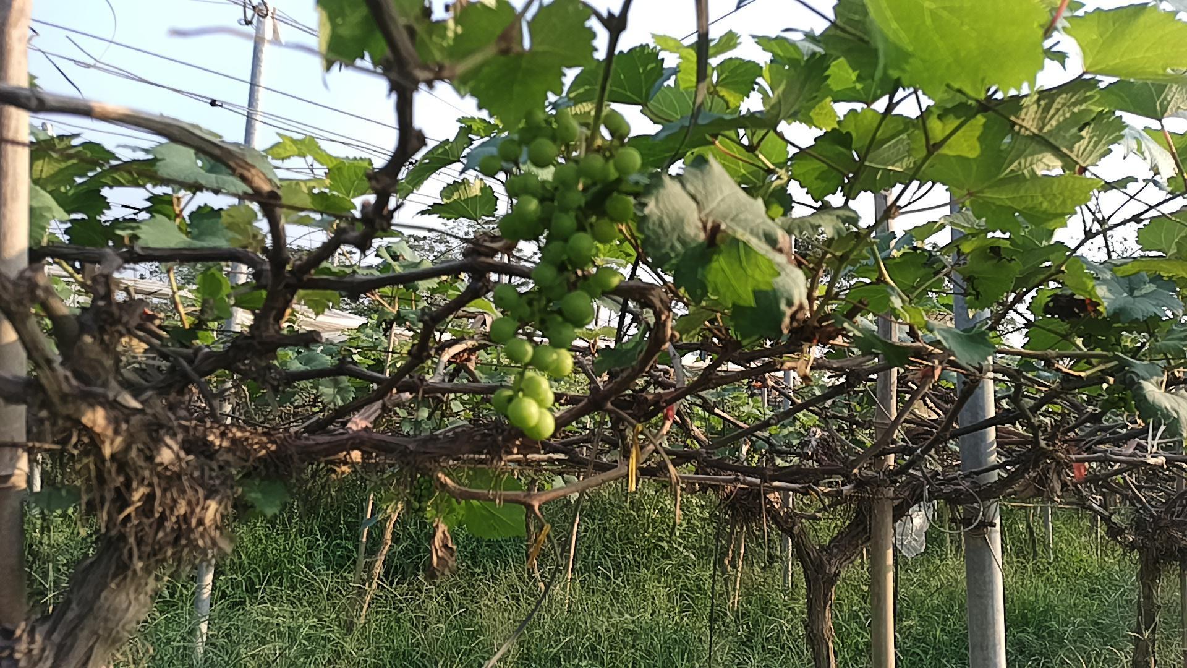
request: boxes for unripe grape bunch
[480,108,641,439]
